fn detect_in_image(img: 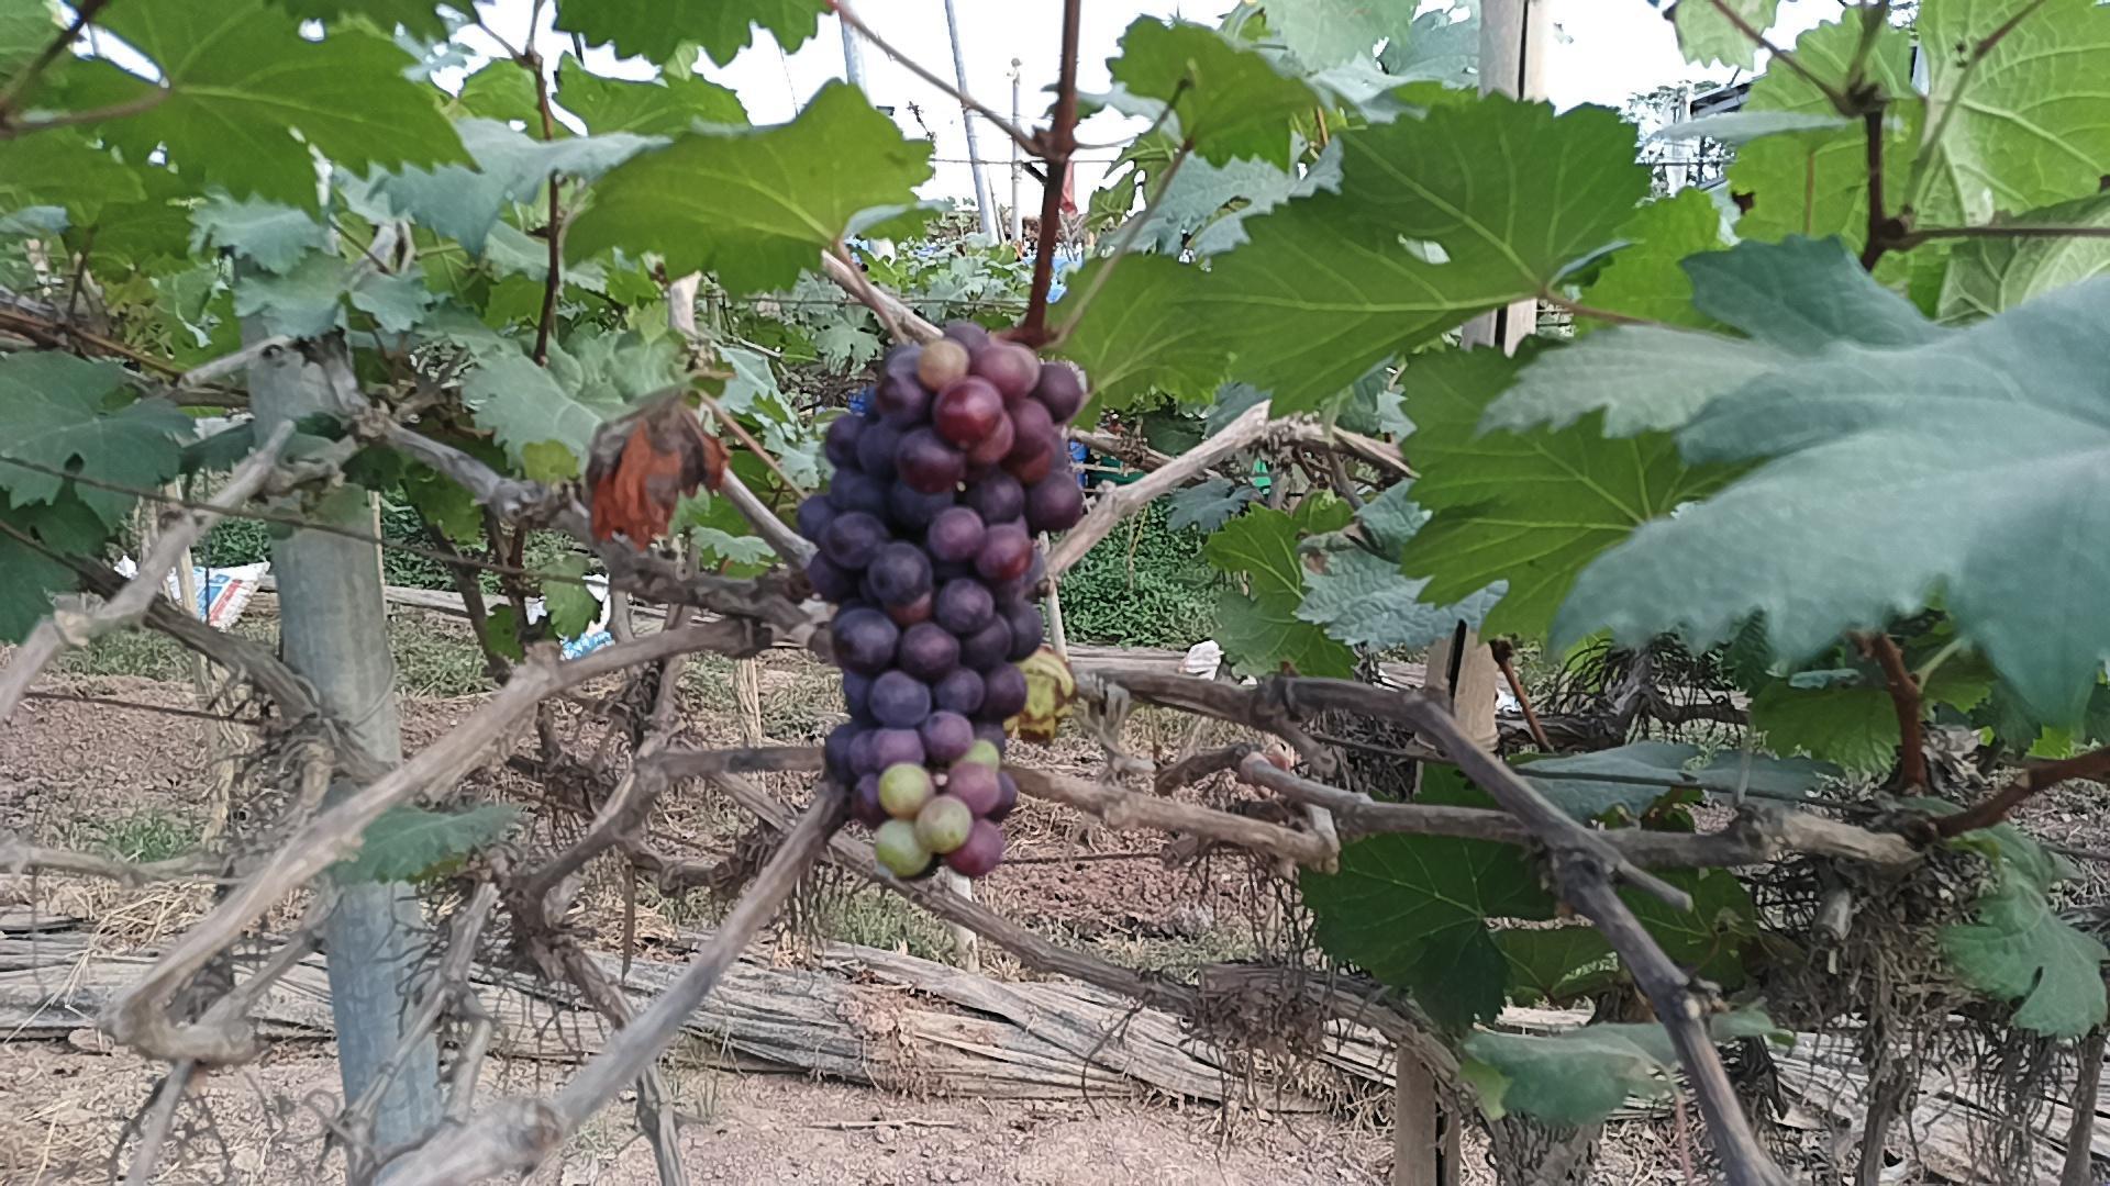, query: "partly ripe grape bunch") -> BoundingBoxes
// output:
[798,322,1085,879]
